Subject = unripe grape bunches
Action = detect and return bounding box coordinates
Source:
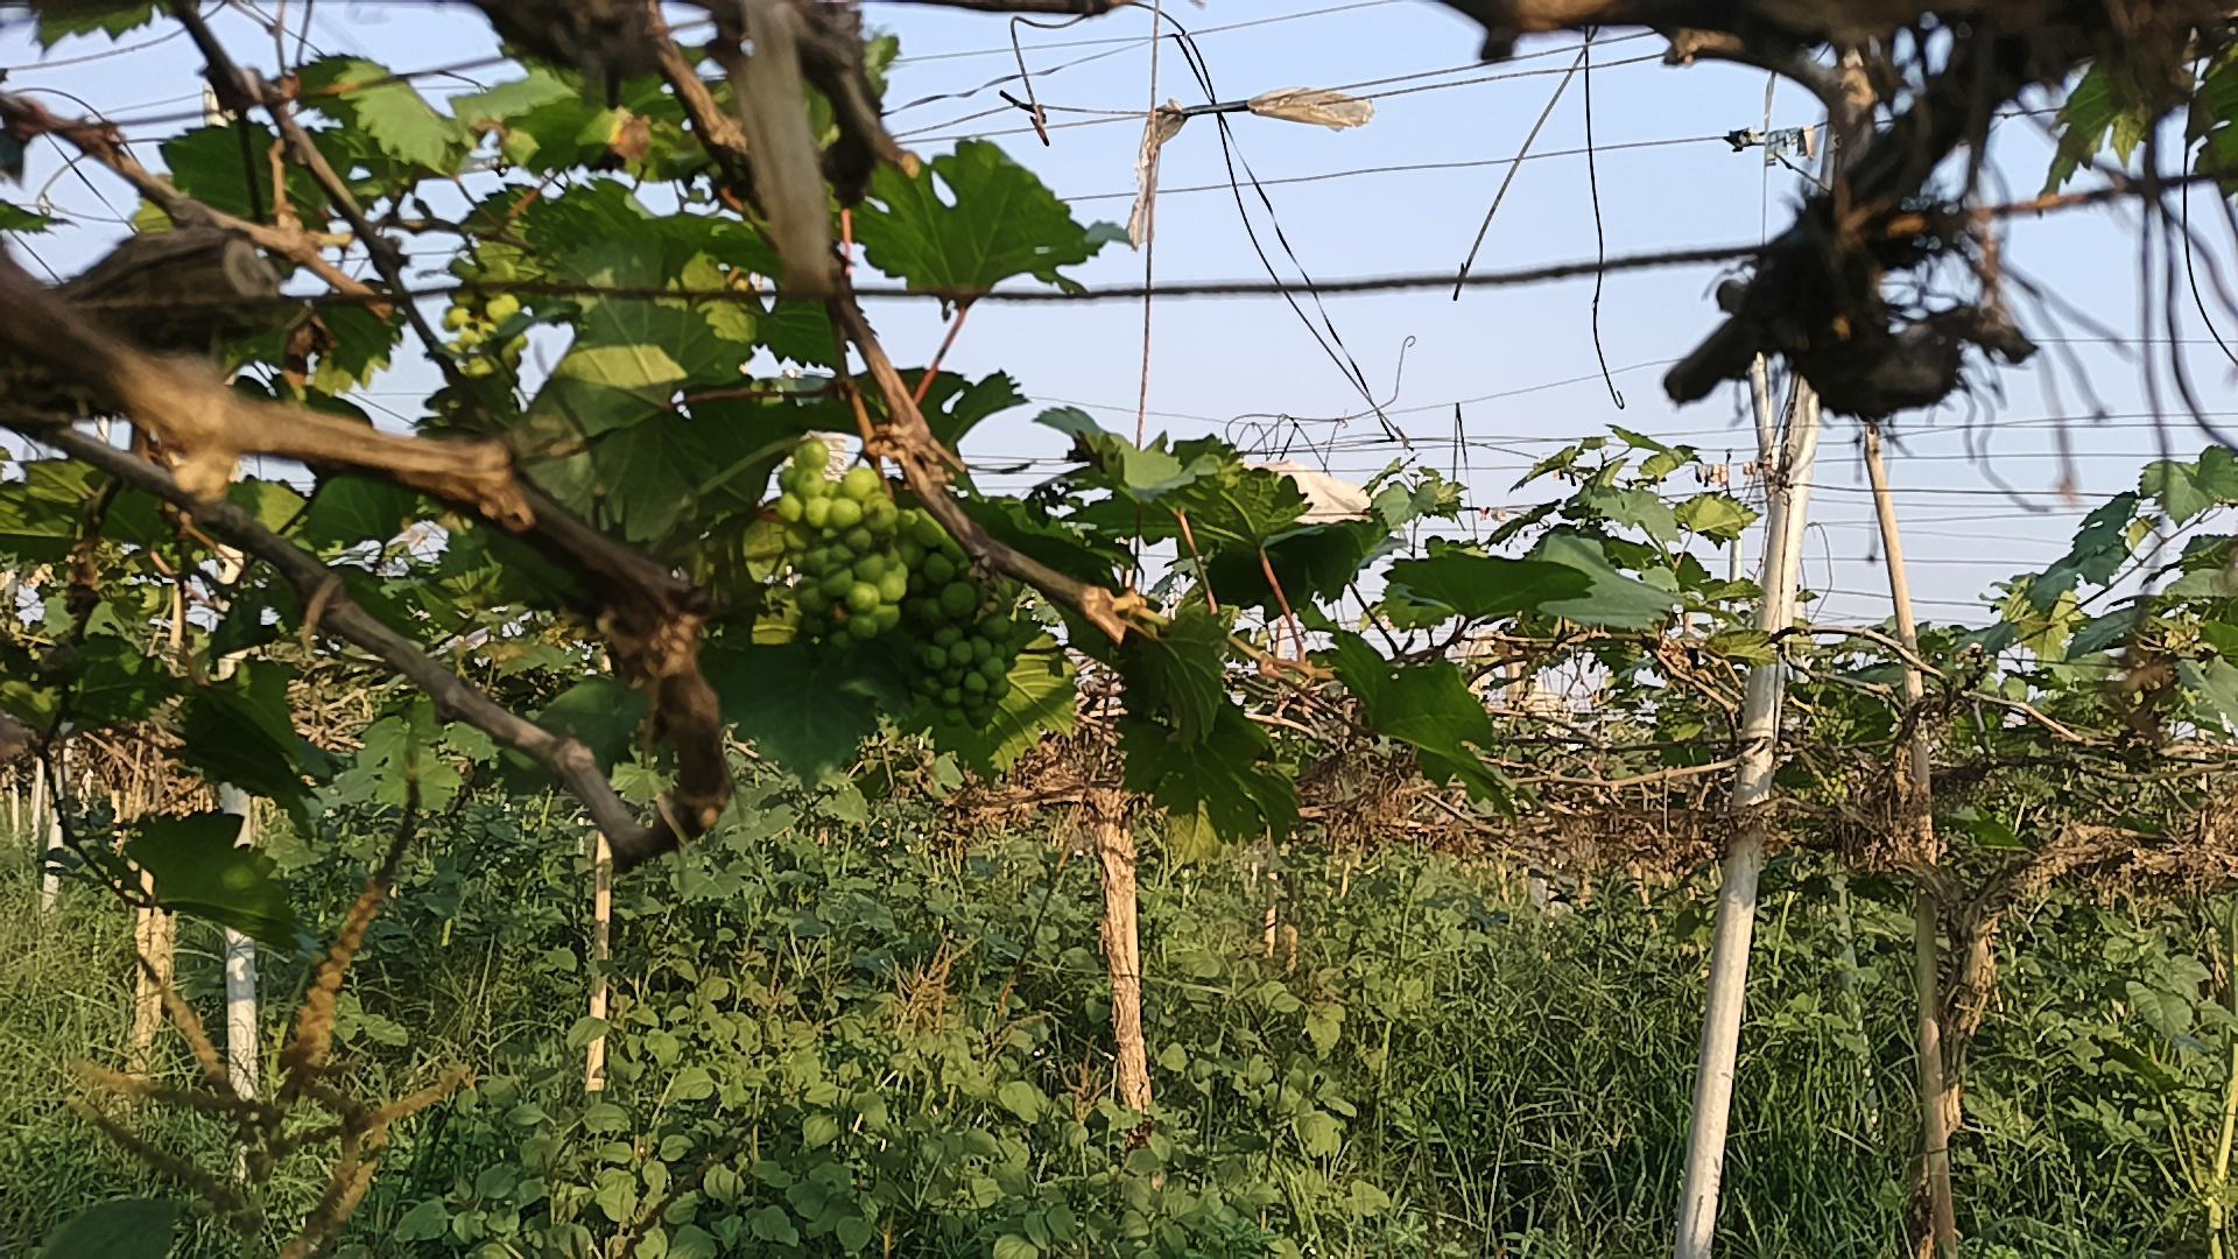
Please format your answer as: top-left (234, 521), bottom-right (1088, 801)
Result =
top-left (443, 240), bottom-right (544, 382)
top-left (775, 439), bottom-right (917, 649)
top-left (899, 507), bottom-right (1023, 730)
